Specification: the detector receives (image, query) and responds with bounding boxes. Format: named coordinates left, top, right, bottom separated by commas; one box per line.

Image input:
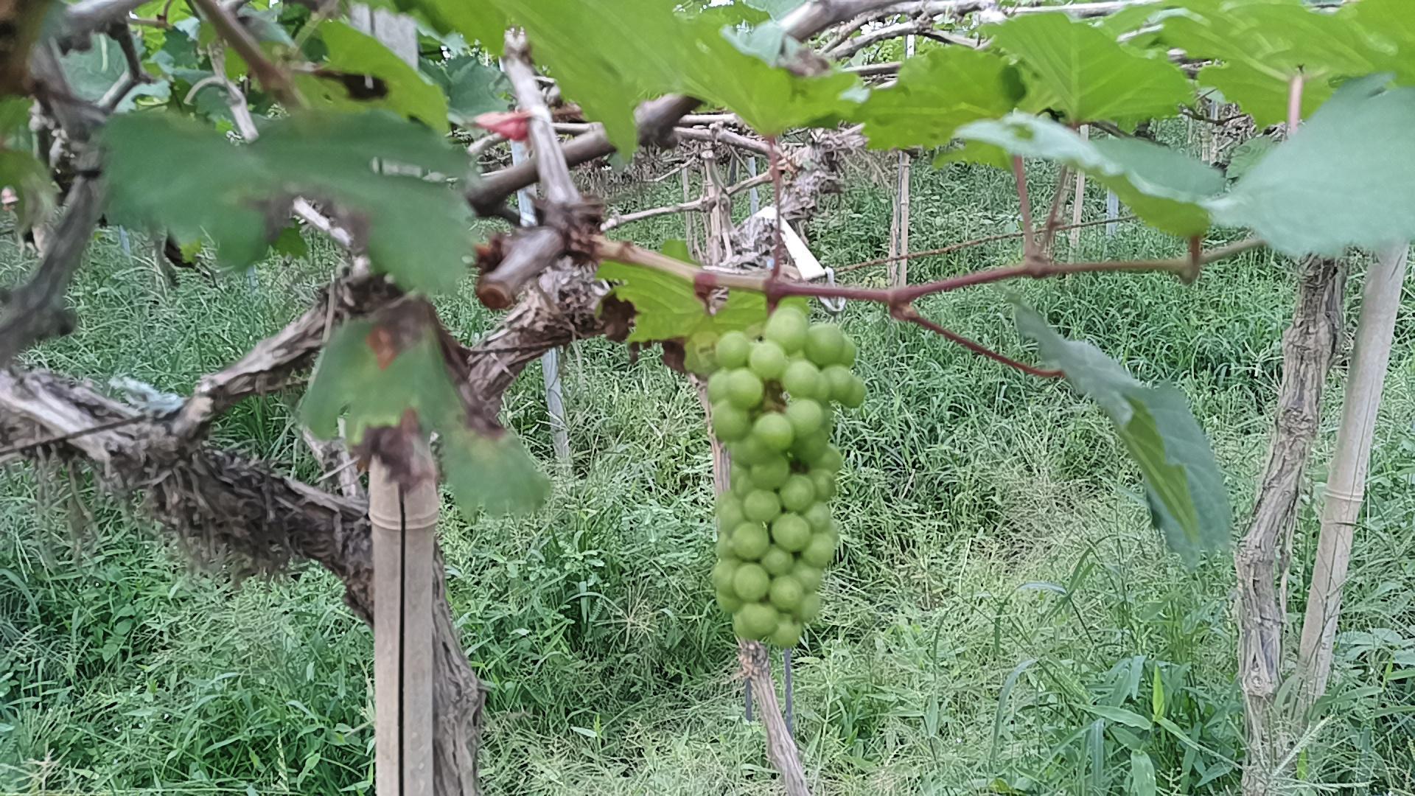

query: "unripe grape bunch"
left=707, top=304, right=865, bottom=647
